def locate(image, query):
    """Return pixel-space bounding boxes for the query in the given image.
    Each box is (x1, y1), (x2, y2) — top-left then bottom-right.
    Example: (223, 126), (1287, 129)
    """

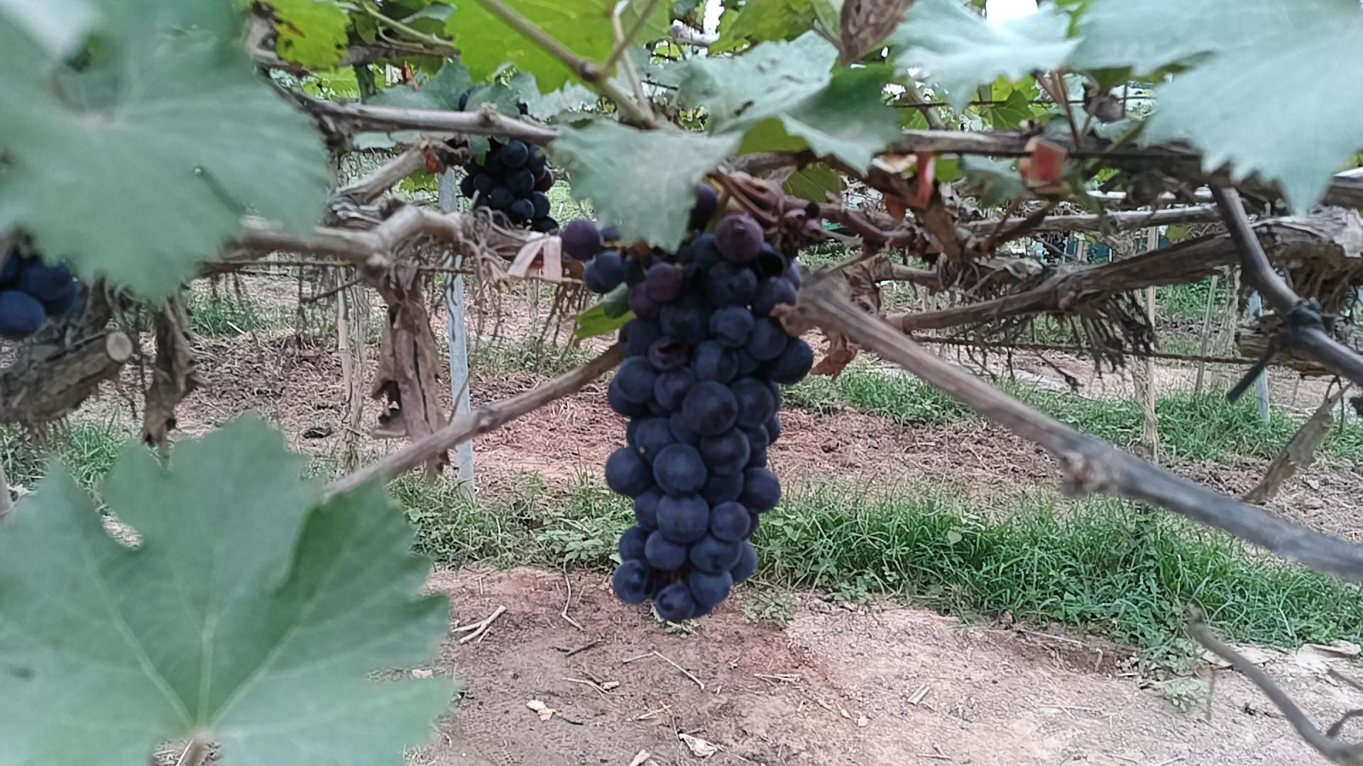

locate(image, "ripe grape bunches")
(562, 182), (812, 621)
(0, 250), (80, 340)
(459, 138), (558, 232)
